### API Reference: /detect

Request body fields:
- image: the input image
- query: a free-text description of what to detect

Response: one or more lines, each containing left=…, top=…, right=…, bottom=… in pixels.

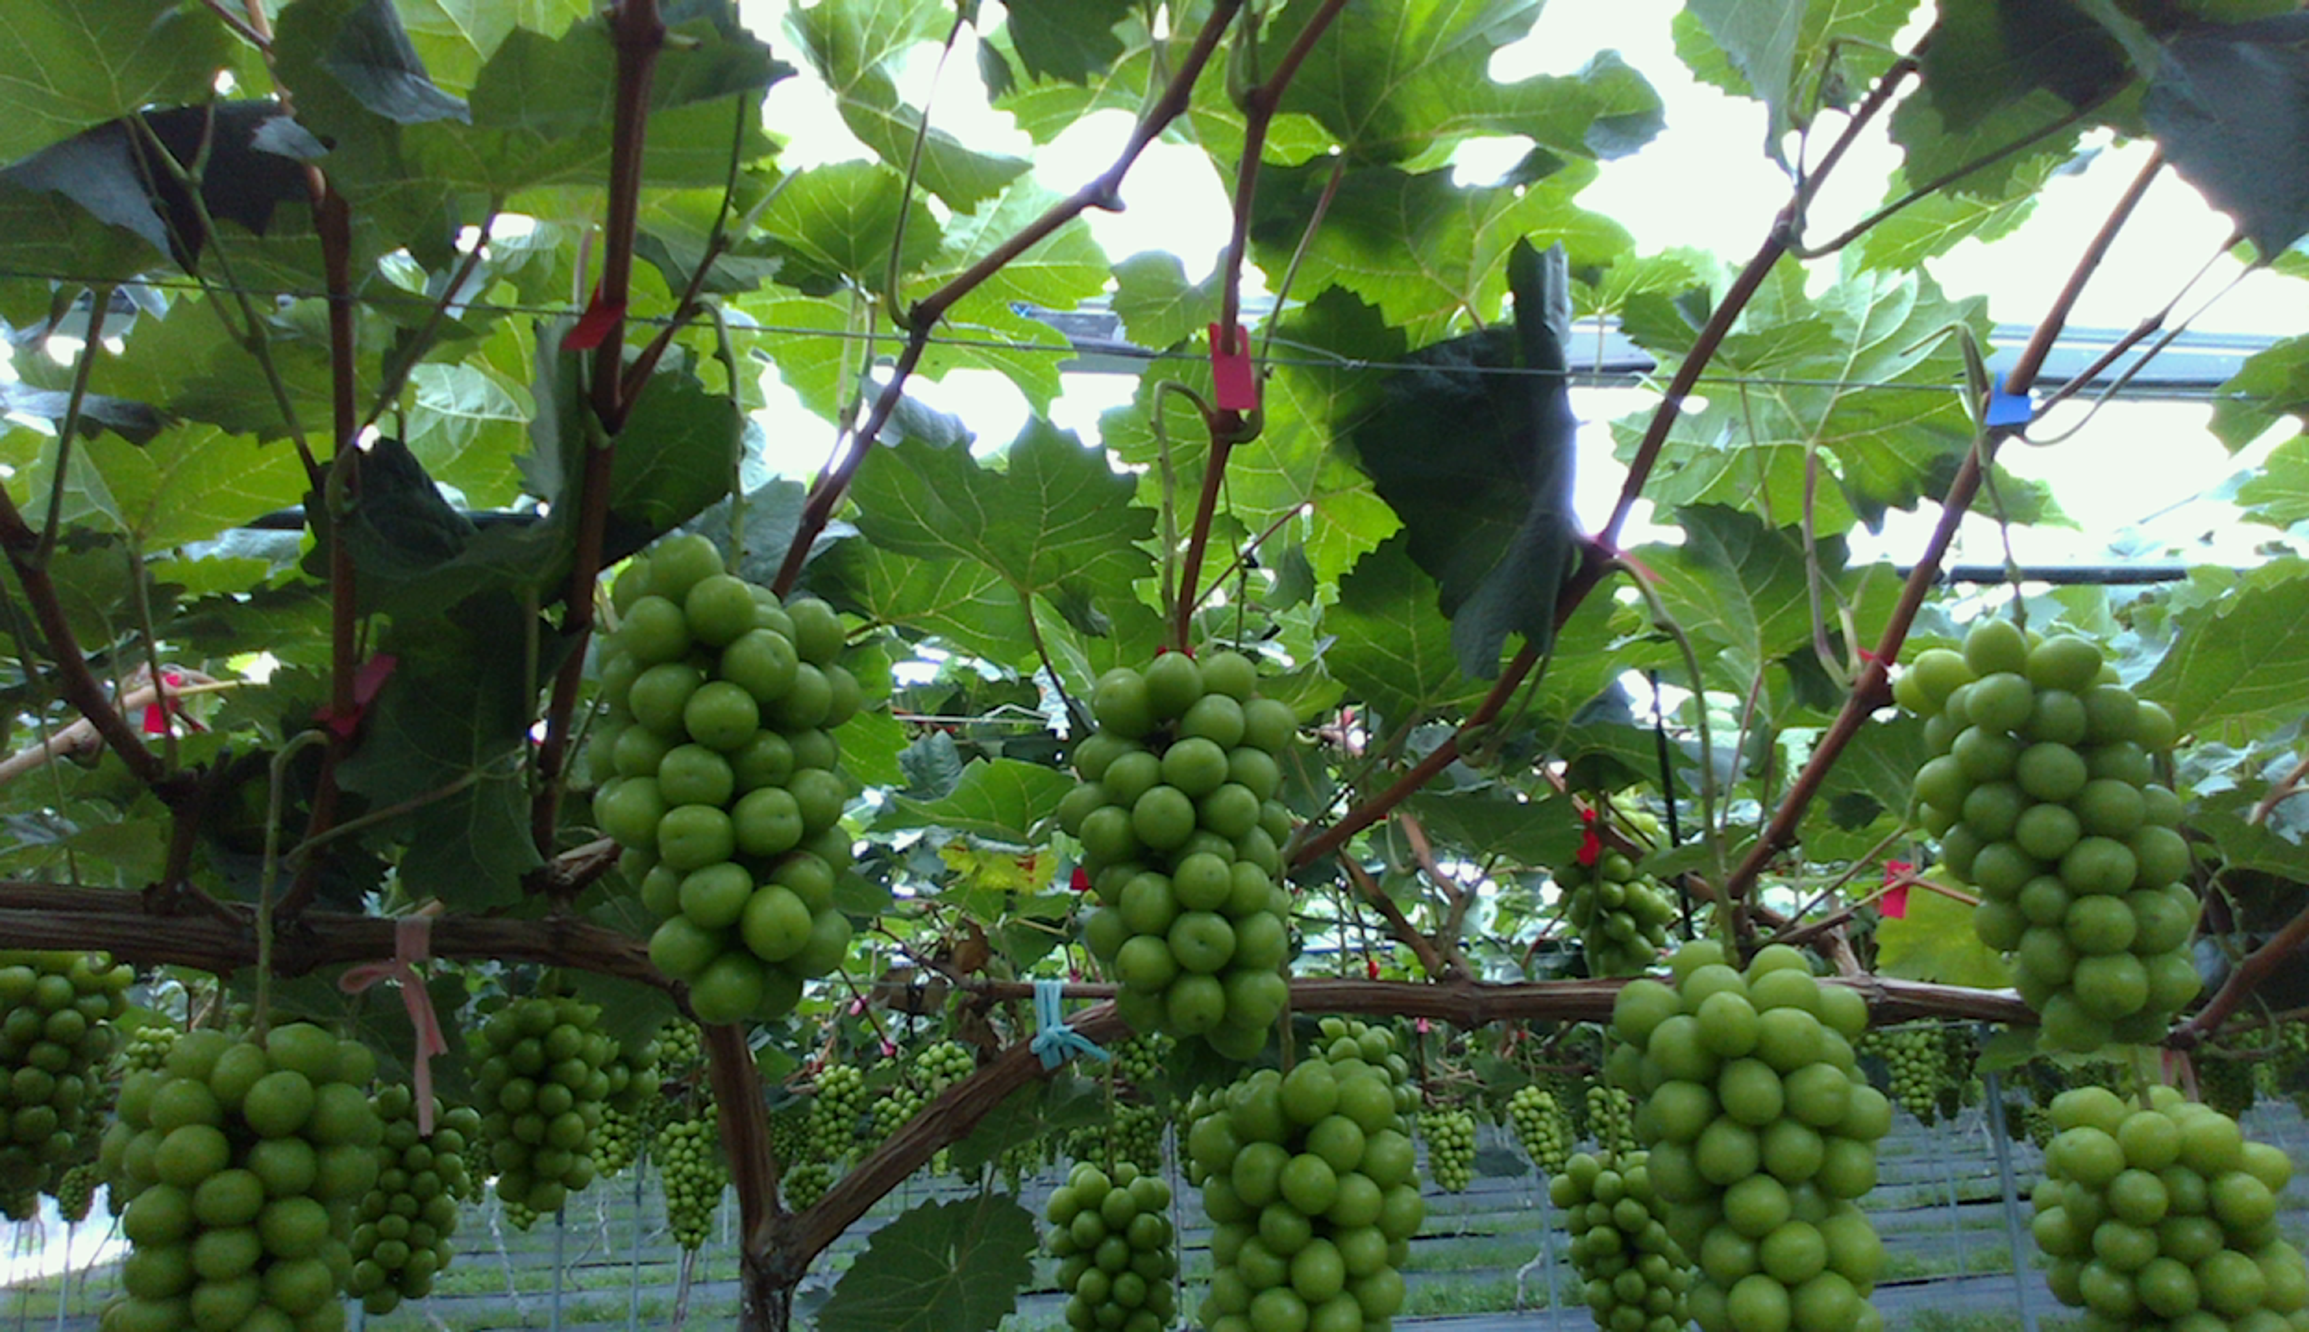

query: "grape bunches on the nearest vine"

left=1188, top=1058, right=1425, bottom=1330
left=1891, top=618, right=2200, bottom=1054
left=1055, top=651, right=1299, bottom=1060
left=1608, top=940, right=1893, bottom=1330
left=100, top=1023, right=385, bottom=1330
left=588, top=533, right=862, bottom=1027
left=2031, top=1082, right=2305, bottom=1330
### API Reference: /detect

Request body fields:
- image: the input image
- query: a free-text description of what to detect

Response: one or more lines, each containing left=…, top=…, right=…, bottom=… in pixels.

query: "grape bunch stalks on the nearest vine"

left=1600, top=559, right=1741, bottom=971
left=698, top=302, right=749, bottom=577
left=2124, top=1043, right=2154, bottom=1110
left=1278, top=953, right=1293, bottom=1079
left=1151, top=377, right=1214, bottom=651
left=252, top=729, right=327, bottom=1051
left=1956, top=322, right=2026, bottom=635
